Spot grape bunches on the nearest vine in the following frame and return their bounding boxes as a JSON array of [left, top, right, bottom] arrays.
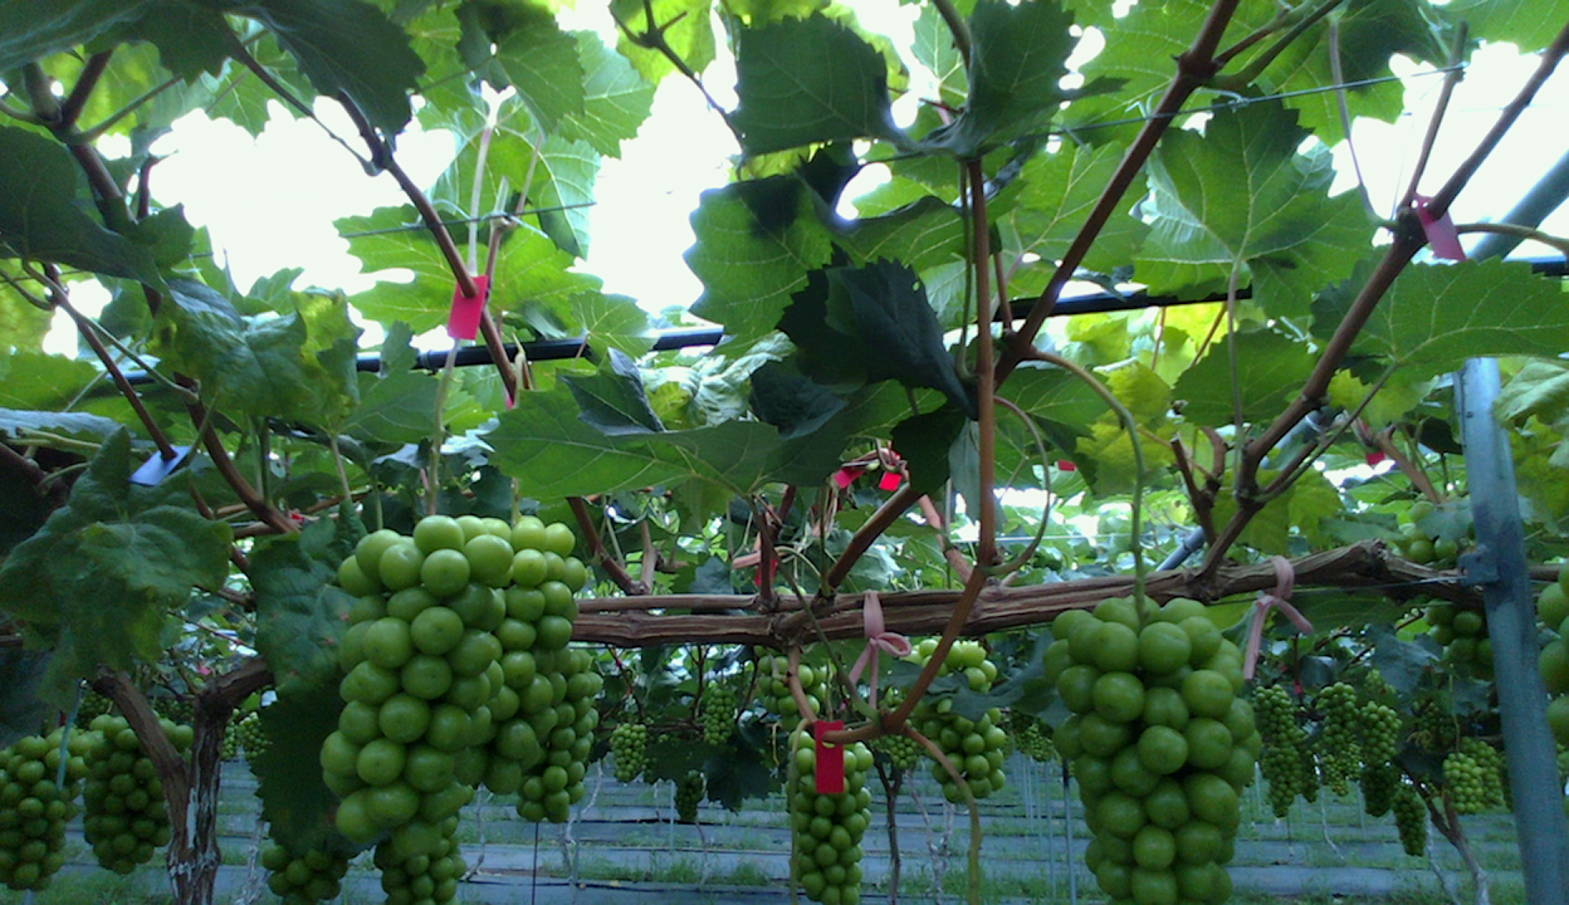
[[1043, 593, 1261, 904], [480, 517, 587, 796], [322, 514, 513, 860]]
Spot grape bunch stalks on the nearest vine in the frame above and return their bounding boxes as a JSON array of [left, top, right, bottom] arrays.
[[425, 341, 463, 518], [1025, 349, 1148, 623]]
